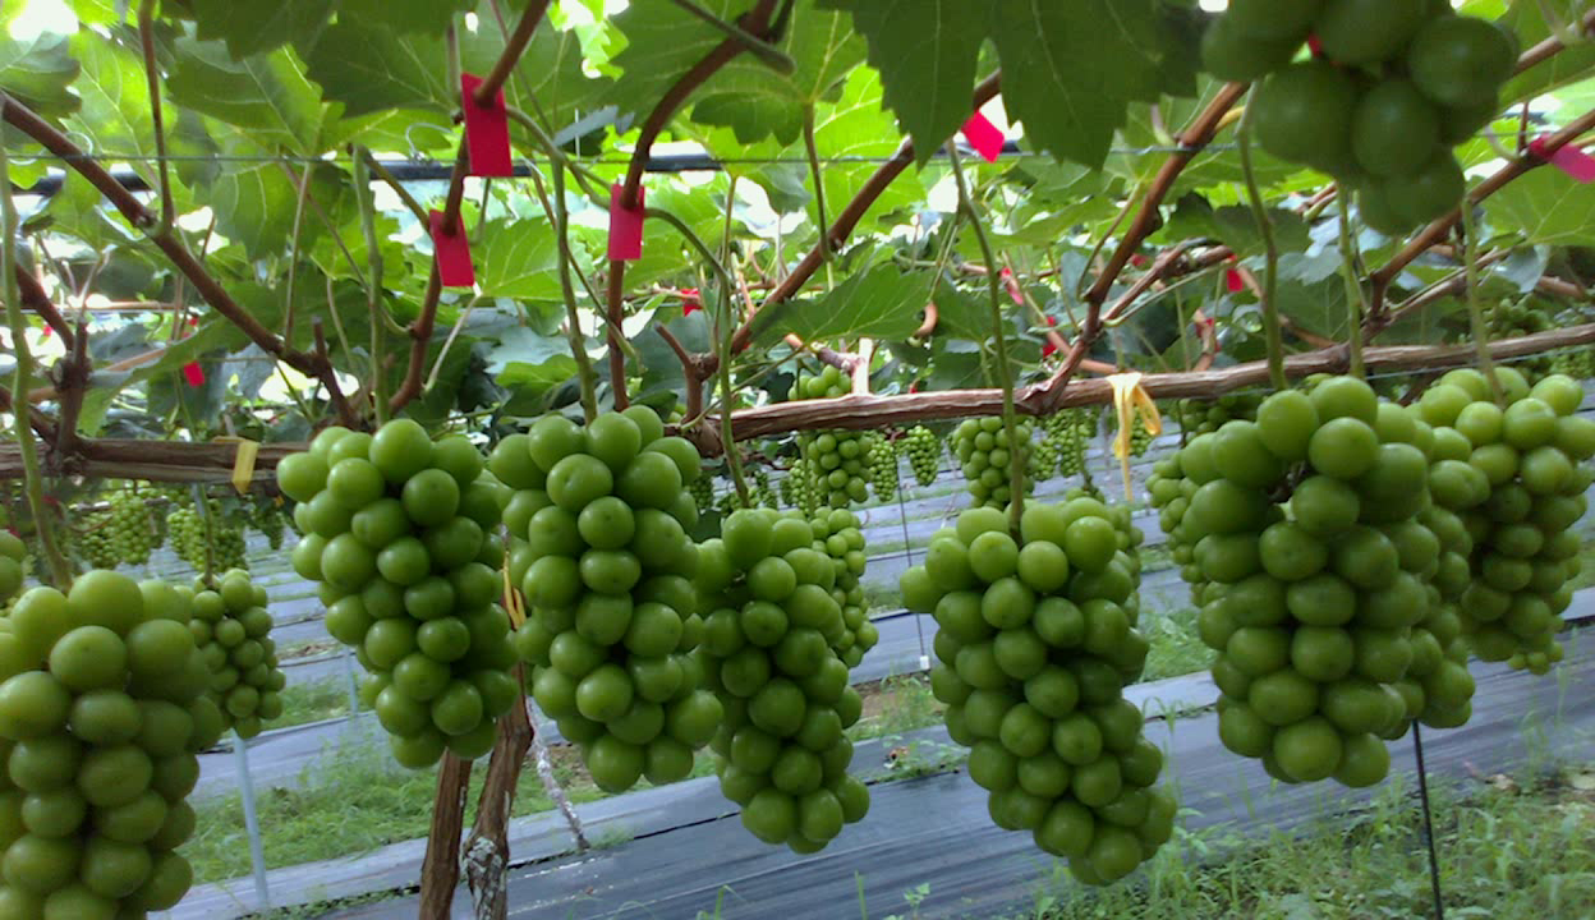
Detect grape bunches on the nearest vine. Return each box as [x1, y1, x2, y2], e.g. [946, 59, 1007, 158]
[0, 570, 222, 917]
[1419, 425, 1489, 728]
[488, 406, 723, 796]
[1181, 374, 1443, 788]
[898, 497, 1178, 884]
[1419, 369, 1592, 662]
[693, 507, 870, 852]
[274, 419, 518, 772]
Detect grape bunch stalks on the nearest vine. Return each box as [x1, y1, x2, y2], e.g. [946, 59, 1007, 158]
[1235, 80, 1286, 390]
[506, 103, 598, 422]
[643, 206, 753, 509]
[0, 143, 72, 594]
[942, 134, 1024, 523]
[1338, 181, 1365, 377]
[350, 142, 431, 429]
[1460, 199, 1507, 410]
